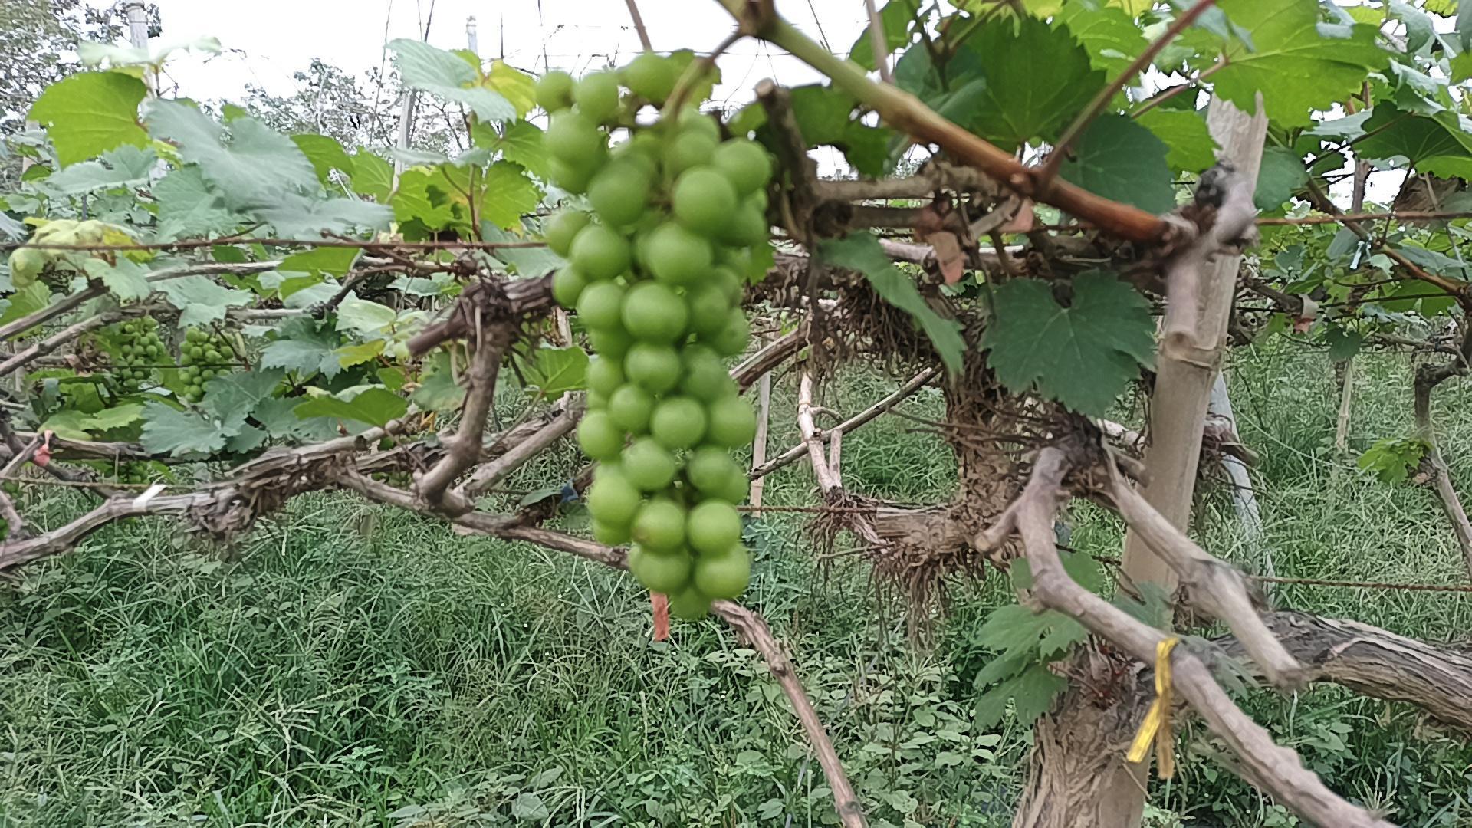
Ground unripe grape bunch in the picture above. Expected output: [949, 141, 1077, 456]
[538, 51, 778, 619]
